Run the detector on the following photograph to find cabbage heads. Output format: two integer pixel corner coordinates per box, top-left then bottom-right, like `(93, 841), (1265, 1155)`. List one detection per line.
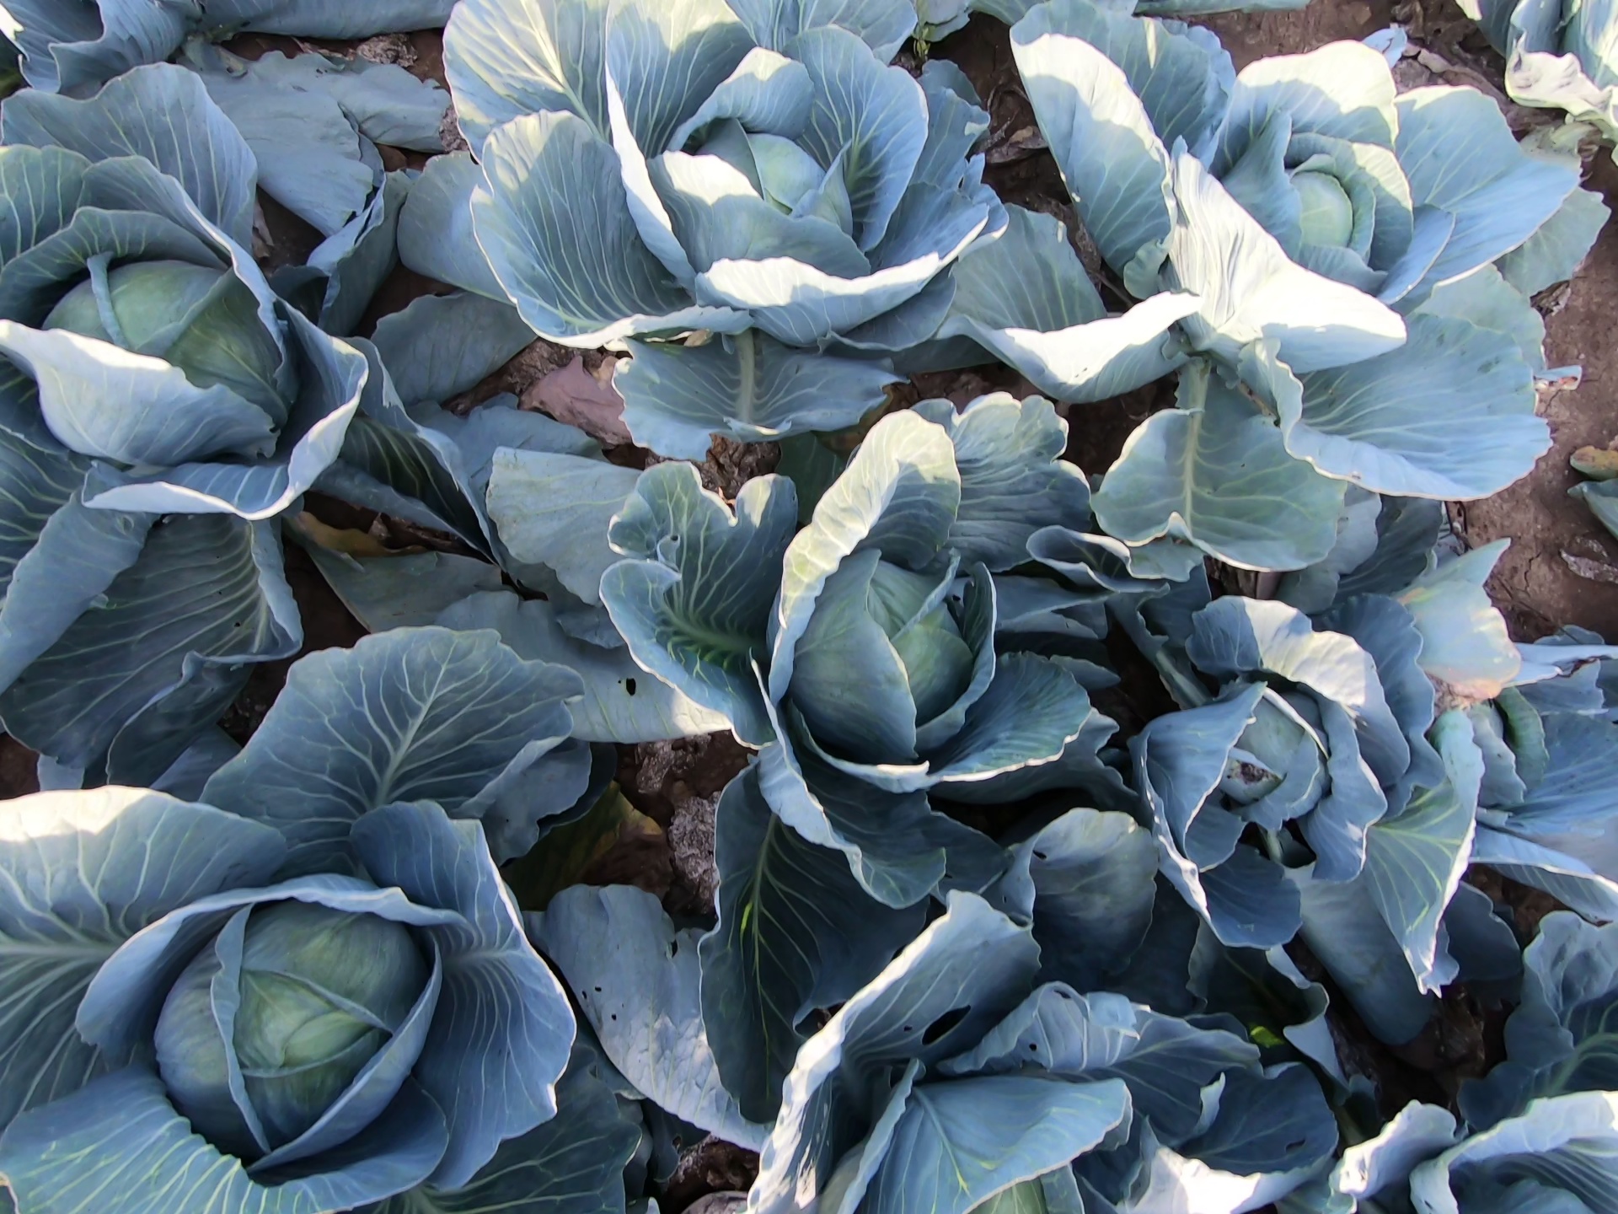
(688, 133), (854, 283)
(873, 1097), (1069, 1211)
(1219, 169), (1364, 307)
(1203, 688), (1326, 809)
(790, 556), (975, 748)
(153, 894), (422, 1154)
(40, 259), (287, 458)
